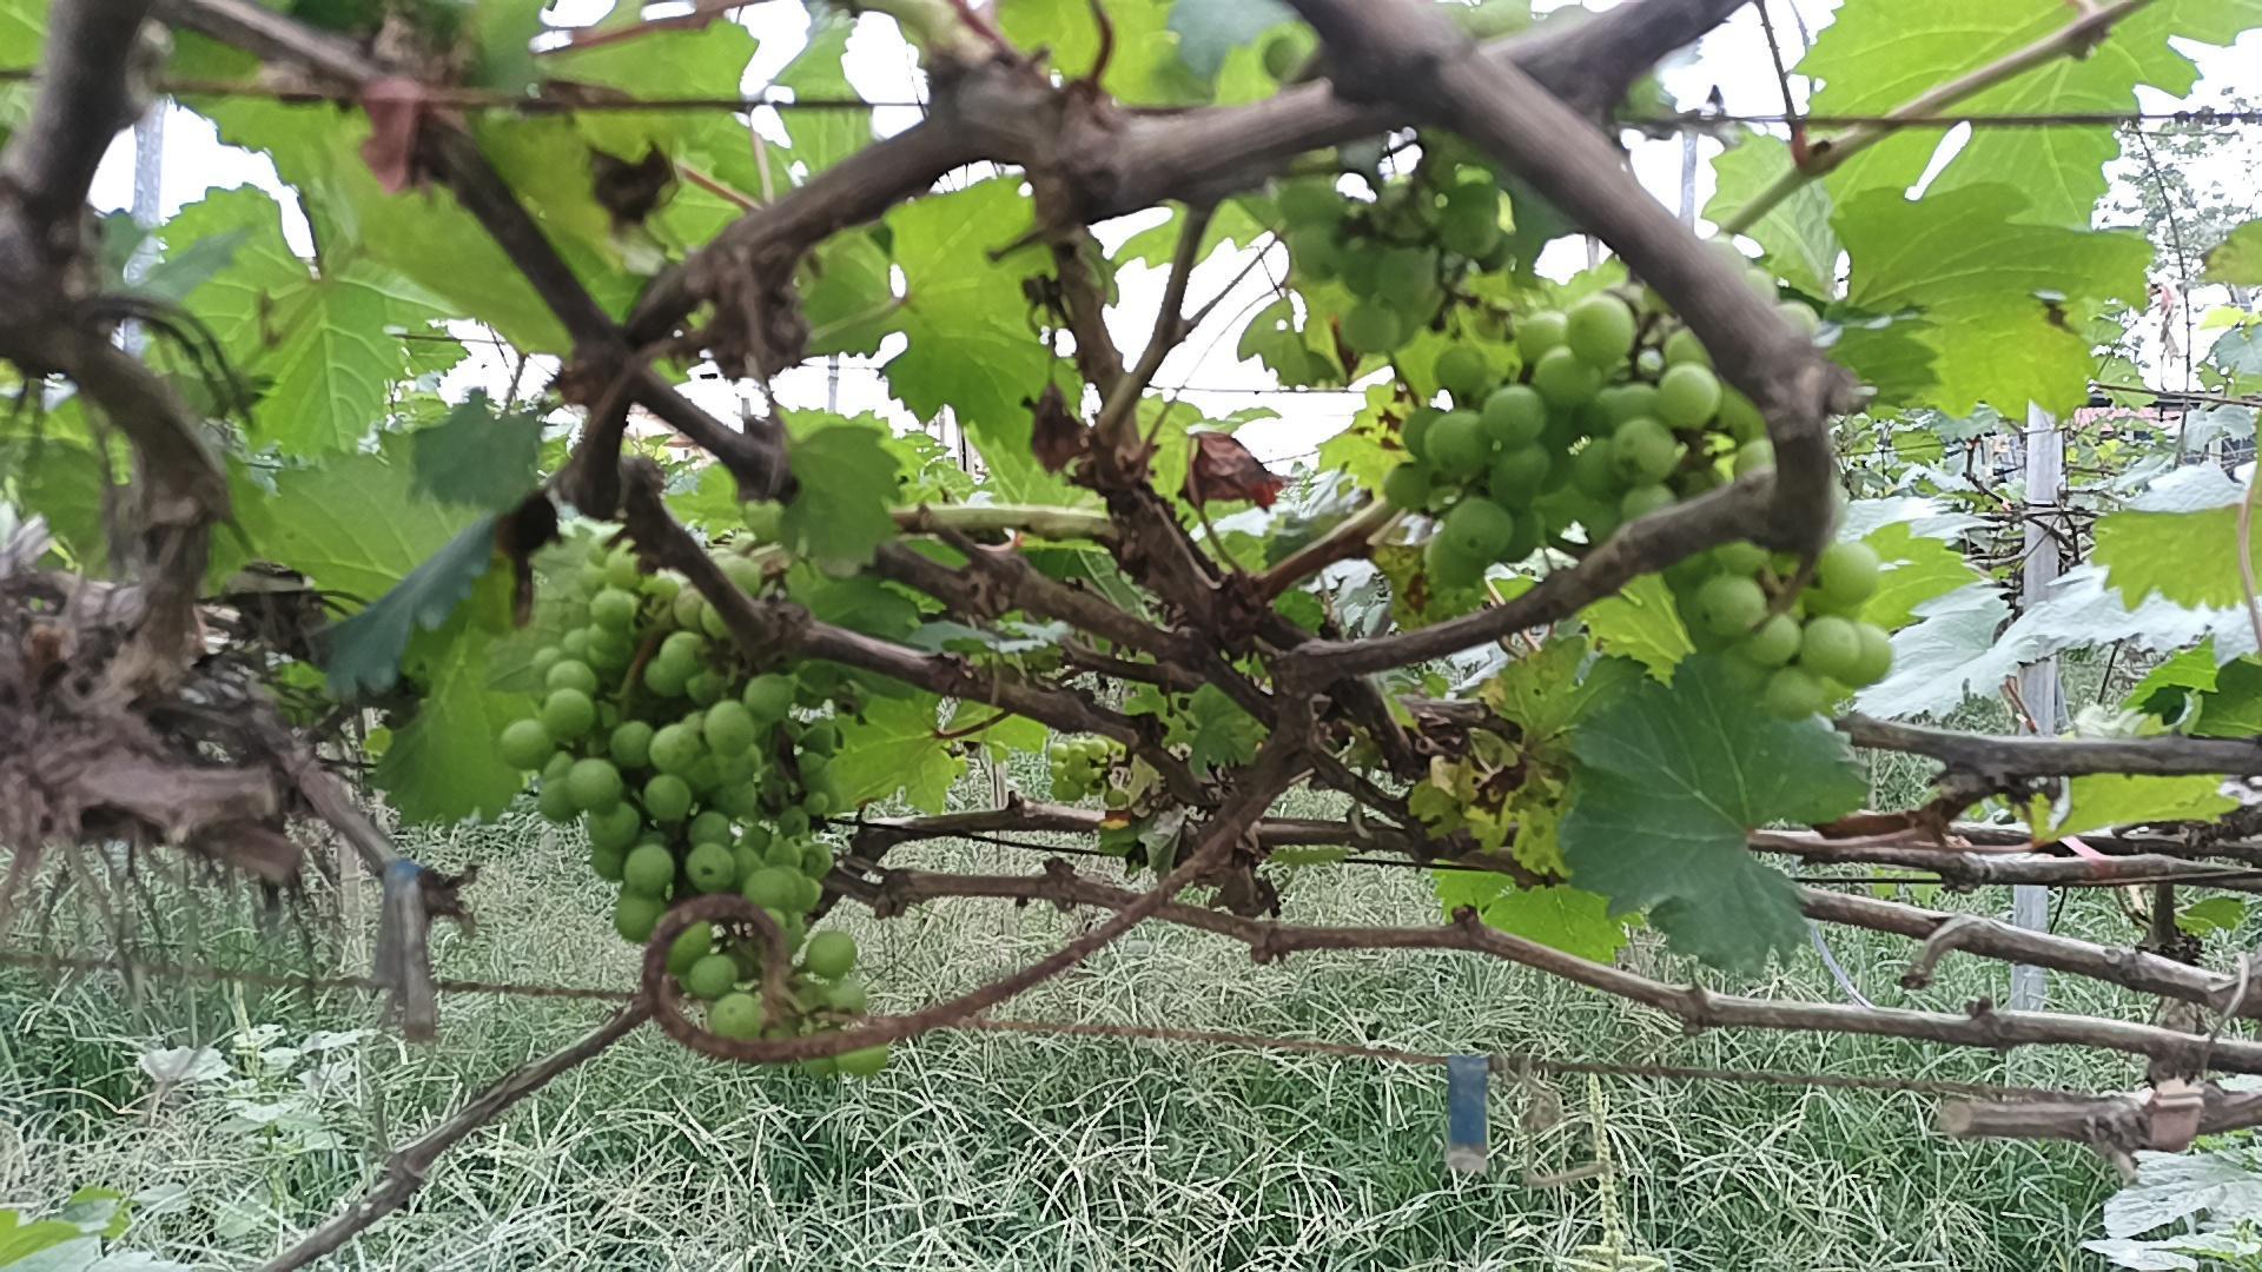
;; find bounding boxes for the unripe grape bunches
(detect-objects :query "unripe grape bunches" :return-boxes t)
[1383,290,1891,716]
[498,537,889,1075]
[1277,132,1510,362]
[1049,738,1130,809]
